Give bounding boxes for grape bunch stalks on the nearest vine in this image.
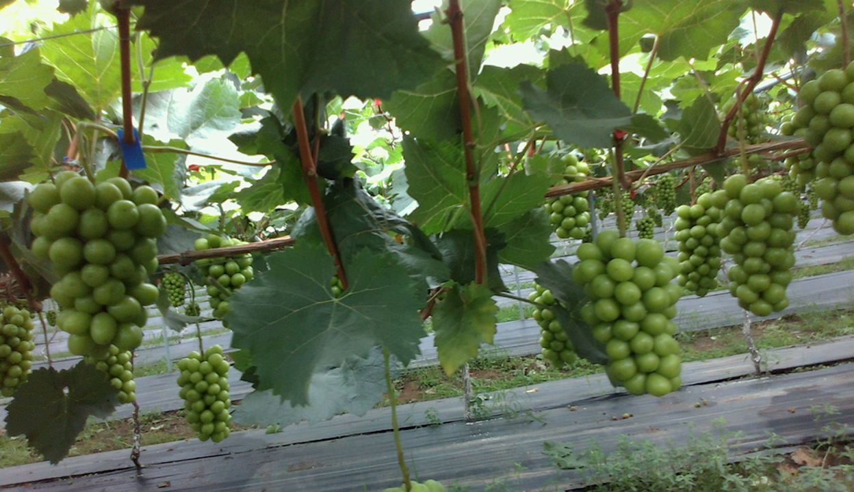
[384,351,411,491]
[838,0,850,68]
[608,149,625,237]
[732,79,750,182]
[76,122,117,183]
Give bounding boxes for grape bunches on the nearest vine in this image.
[572,230,681,396]
[709,174,801,316]
[795,61,853,235]
[30,172,168,358]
